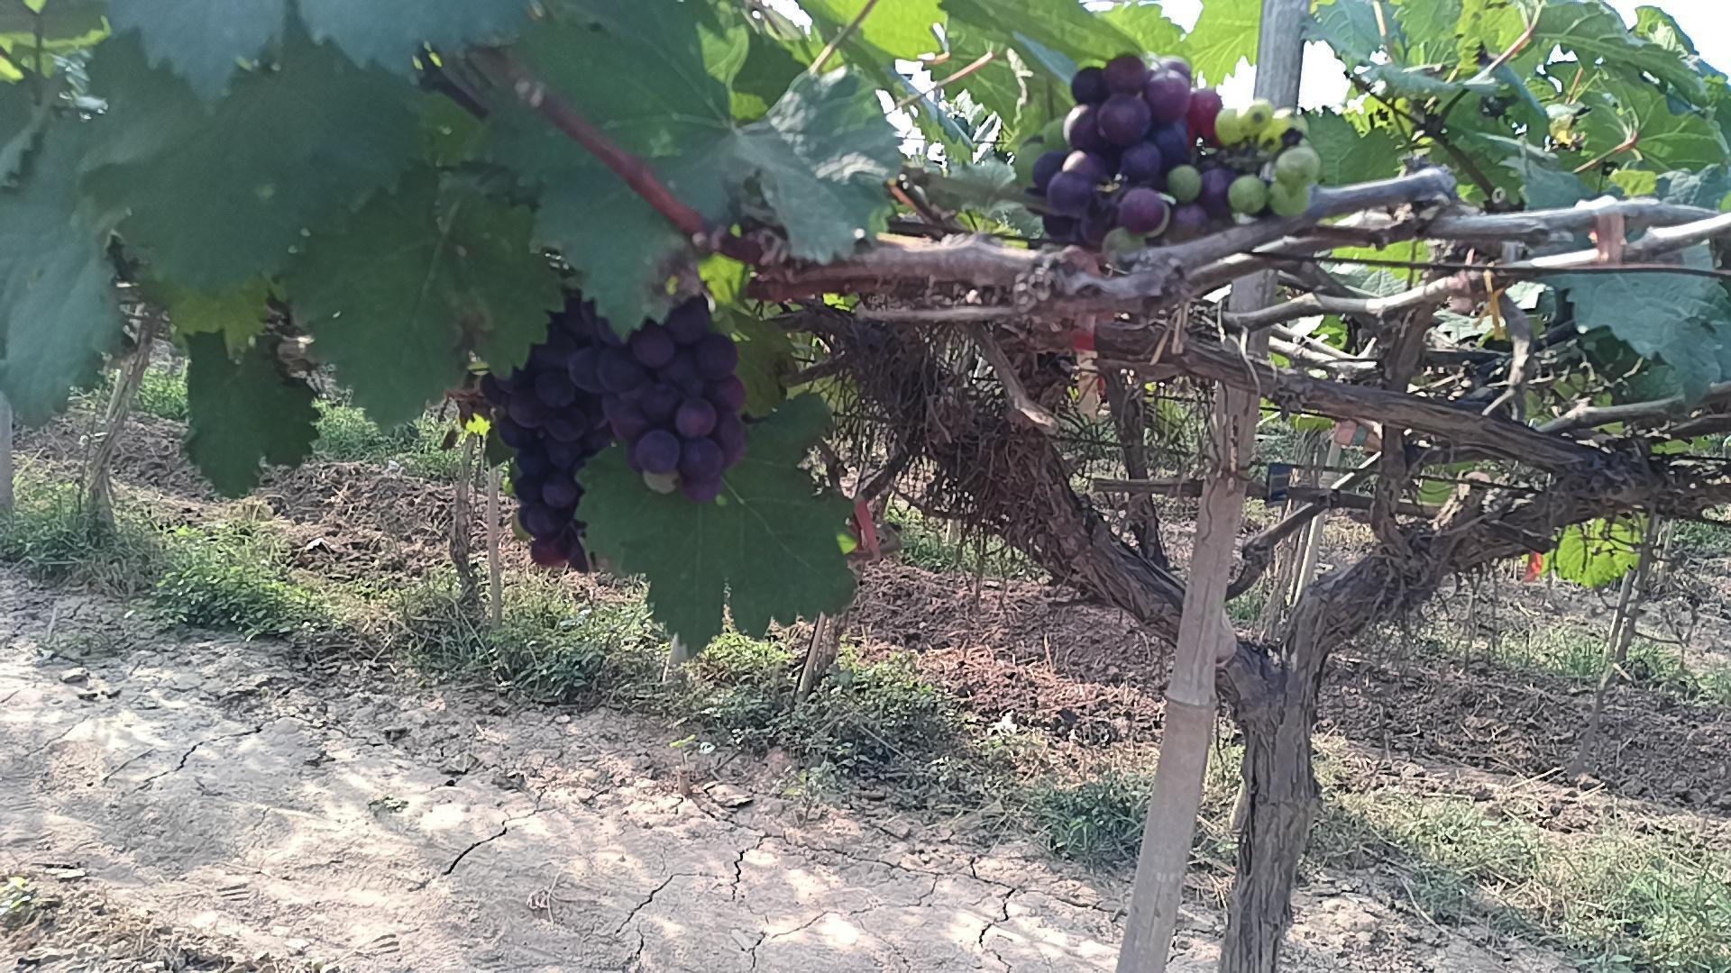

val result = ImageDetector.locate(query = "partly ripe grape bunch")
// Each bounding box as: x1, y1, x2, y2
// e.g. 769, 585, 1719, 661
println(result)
1027, 55, 1320, 250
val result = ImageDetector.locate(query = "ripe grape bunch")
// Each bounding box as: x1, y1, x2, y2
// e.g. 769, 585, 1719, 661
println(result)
480, 291, 745, 570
